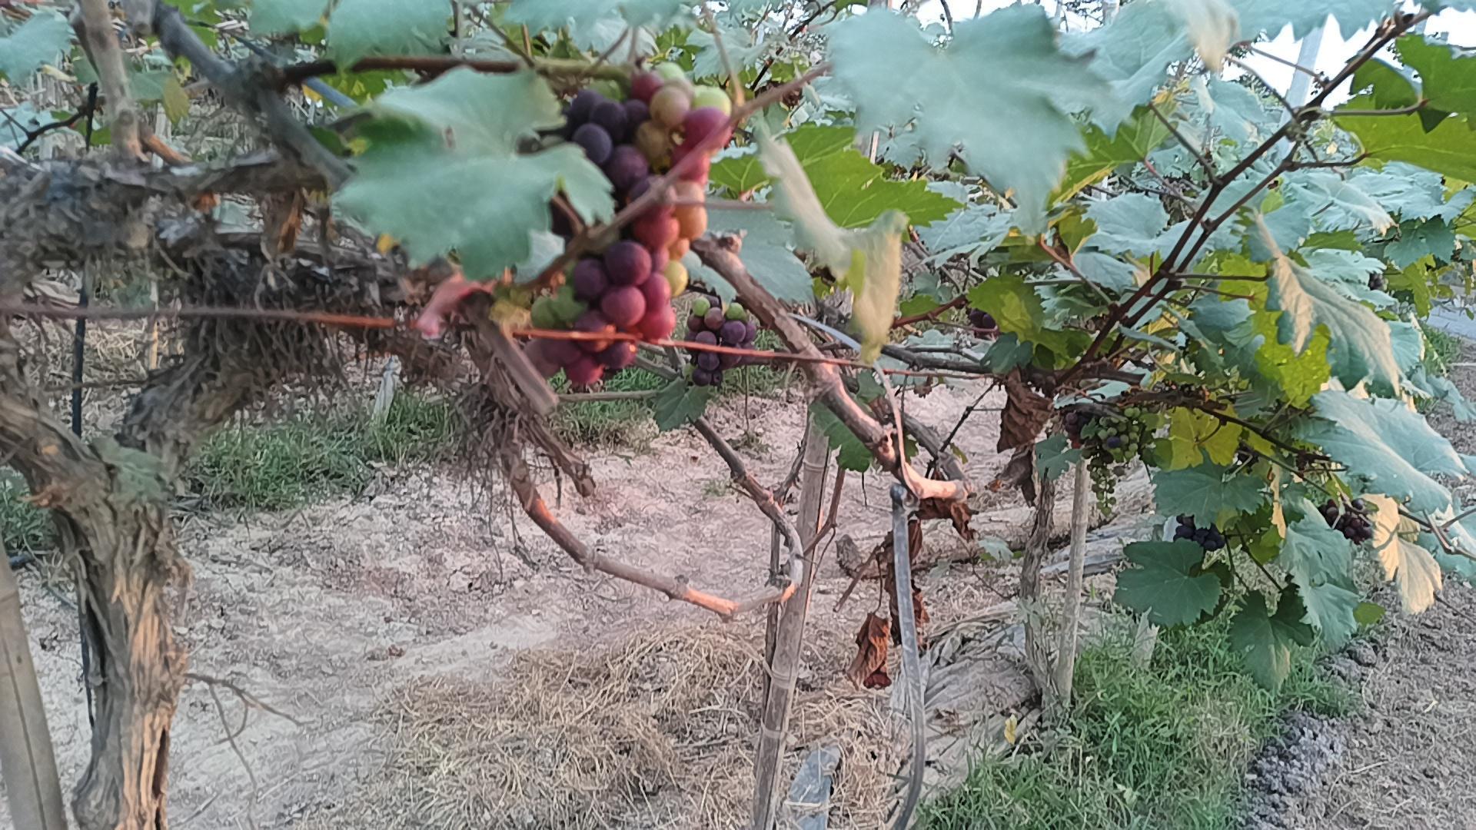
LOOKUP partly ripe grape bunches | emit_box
[1062,397,1167,524]
[527,66,732,387]
[683,296,756,387]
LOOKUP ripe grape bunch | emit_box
[1318,500,1374,544]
